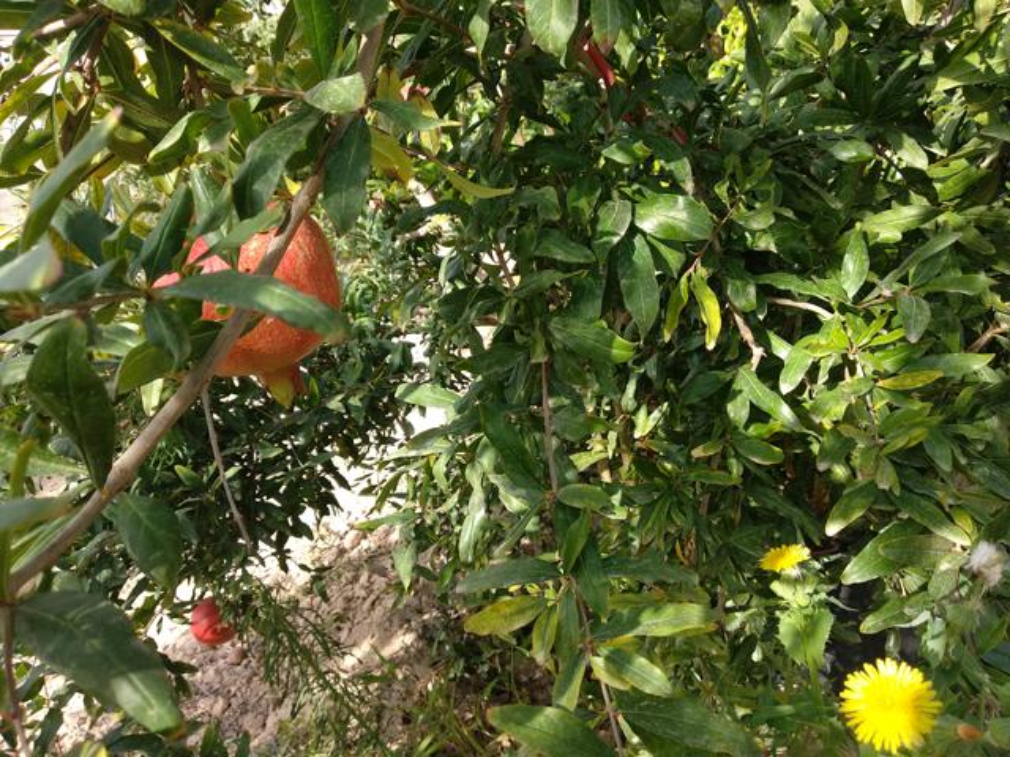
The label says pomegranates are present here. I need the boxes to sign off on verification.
[189,596,235,647]
[151,214,339,408]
